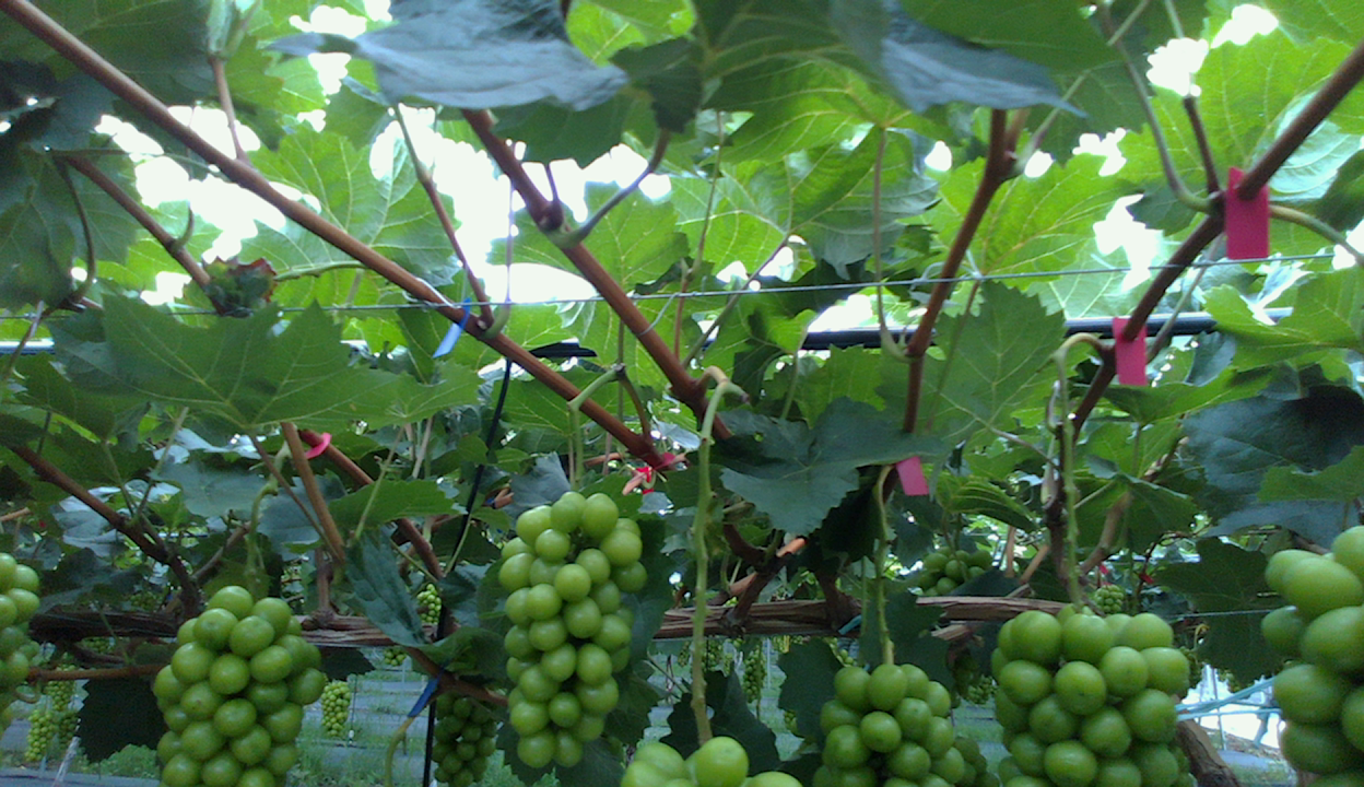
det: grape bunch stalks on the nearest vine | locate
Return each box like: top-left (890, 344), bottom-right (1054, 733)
top-left (1056, 333), bottom-right (1107, 614)
top-left (692, 364), bottom-right (728, 748)
top-left (244, 442), bottom-right (289, 595)
top-left (569, 372), bottom-right (616, 491)
top-left (877, 467), bottom-right (895, 666)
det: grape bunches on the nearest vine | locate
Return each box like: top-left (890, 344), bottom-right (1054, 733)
top-left (1262, 525), bottom-right (1363, 704)
top-left (498, 491), bottom-right (647, 768)
top-left (812, 663), bottom-right (965, 786)
top-left (992, 603), bottom-right (1189, 786)
top-left (1, 552), bottom-right (40, 727)
top-left (154, 585), bottom-right (326, 785)
top-left (621, 736), bottom-right (800, 786)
